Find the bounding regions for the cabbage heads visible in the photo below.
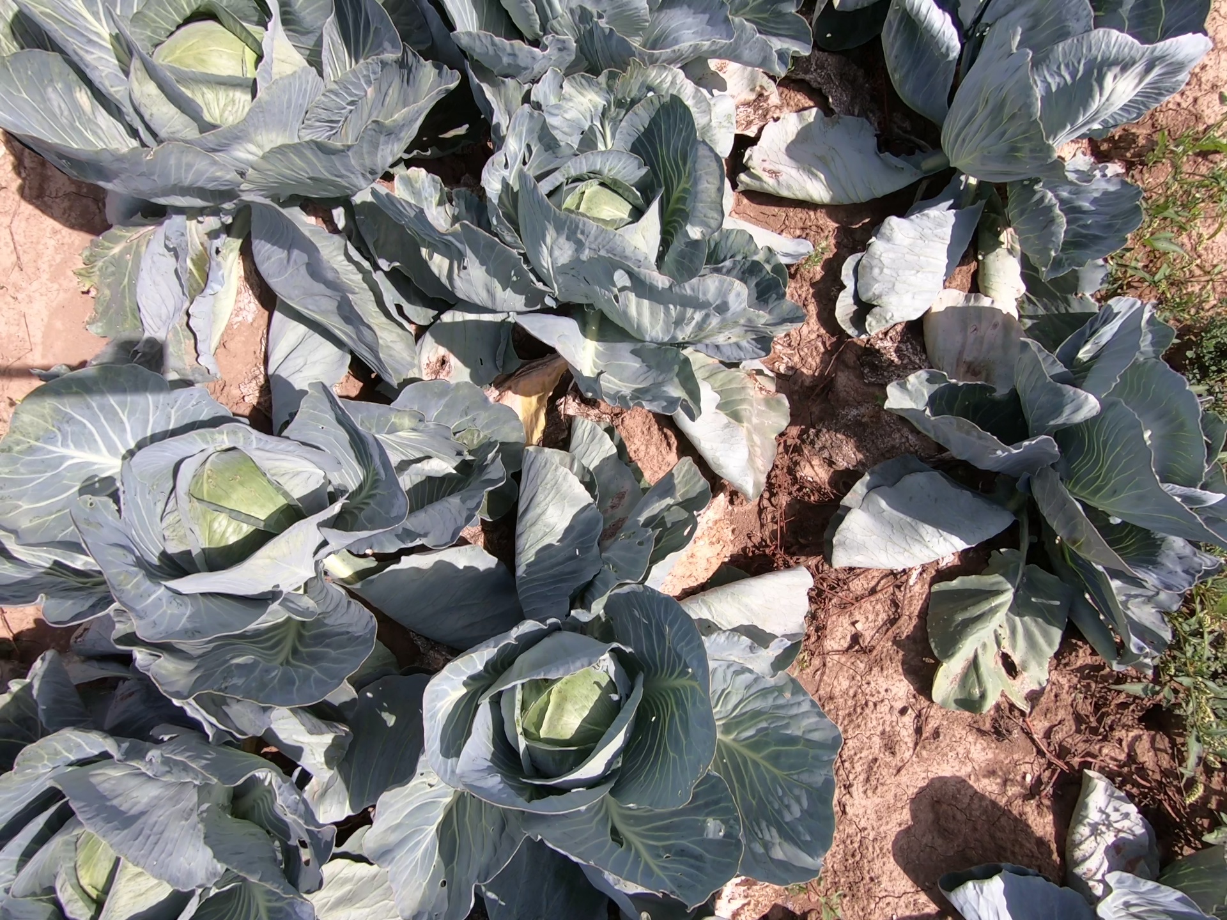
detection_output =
[49,795,204,919]
[529,171,654,298]
[160,448,325,590]
[132,20,313,169]
[499,639,634,786]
